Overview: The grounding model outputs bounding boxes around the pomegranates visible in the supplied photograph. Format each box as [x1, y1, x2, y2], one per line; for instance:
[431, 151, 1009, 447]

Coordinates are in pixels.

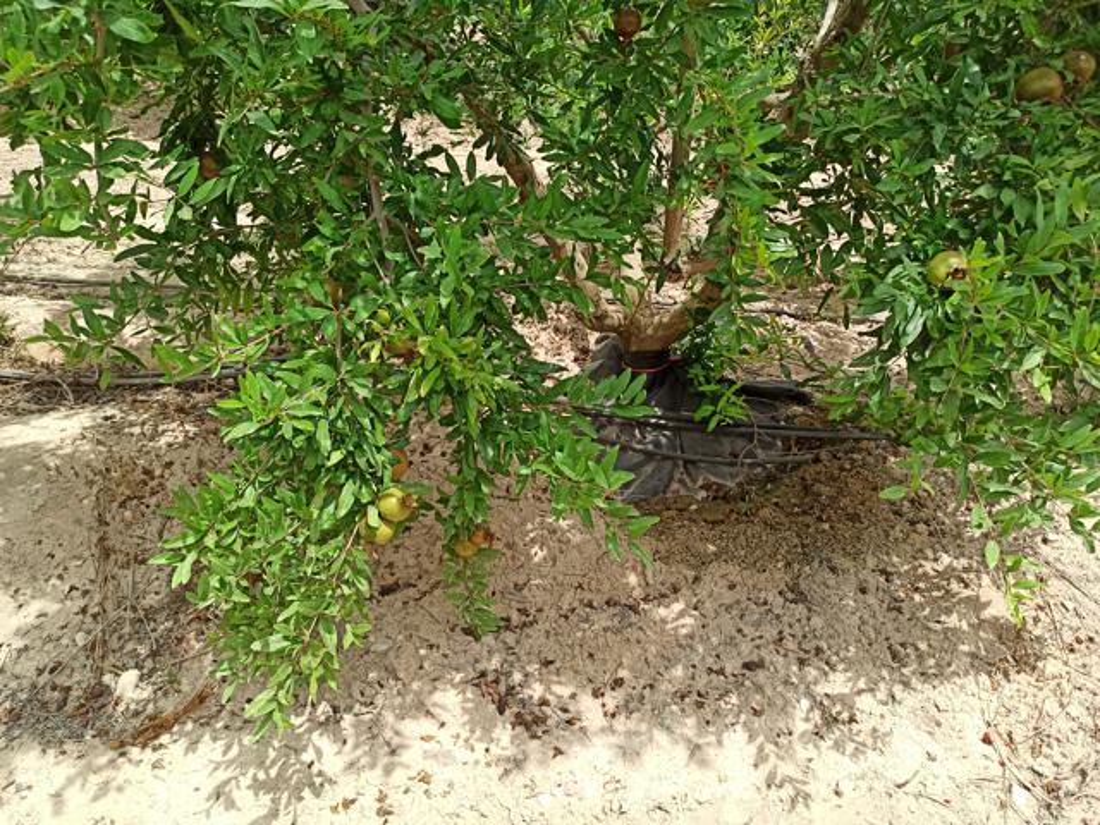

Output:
[321, 277, 340, 306]
[390, 449, 409, 481]
[383, 344, 416, 363]
[1016, 67, 1064, 103]
[199, 151, 220, 180]
[356, 517, 397, 547]
[926, 249, 968, 284]
[452, 540, 481, 559]
[614, 9, 641, 41]
[466, 526, 497, 548]
[376, 486, 421, 522]
[1062, 48, 1097, 82]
